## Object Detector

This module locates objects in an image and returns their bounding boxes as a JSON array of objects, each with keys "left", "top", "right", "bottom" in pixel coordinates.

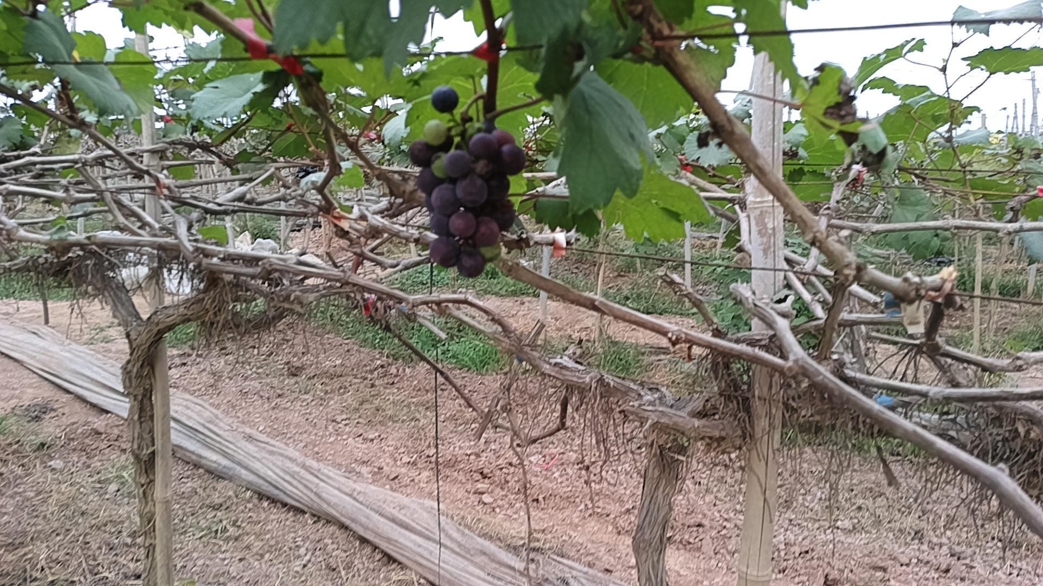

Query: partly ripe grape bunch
[{"left": 409, "top": 84, "right": 525, "bottom": 276}]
